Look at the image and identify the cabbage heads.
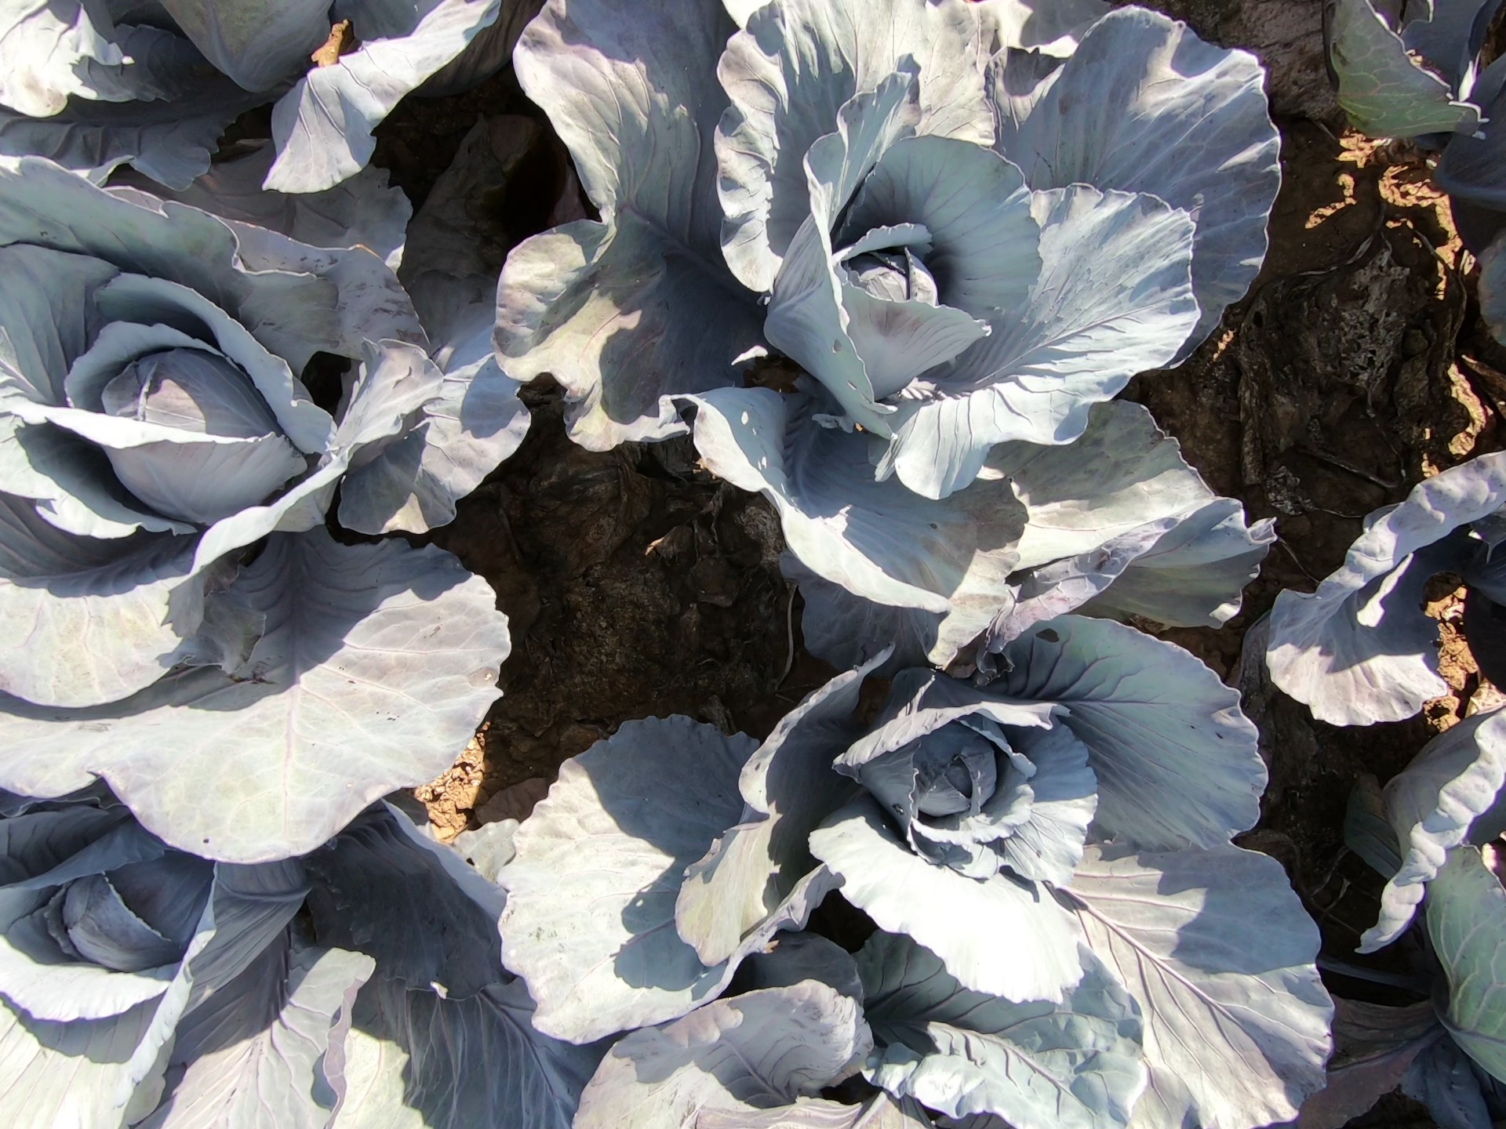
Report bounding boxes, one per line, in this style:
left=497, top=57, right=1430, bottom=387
left=63, top=818, right=264, bottom=972
left=113, top=347, right=280, bottom=500
left=883, top=694, right=999, bottom=813
left=815, top=244, right=937, bottom=375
